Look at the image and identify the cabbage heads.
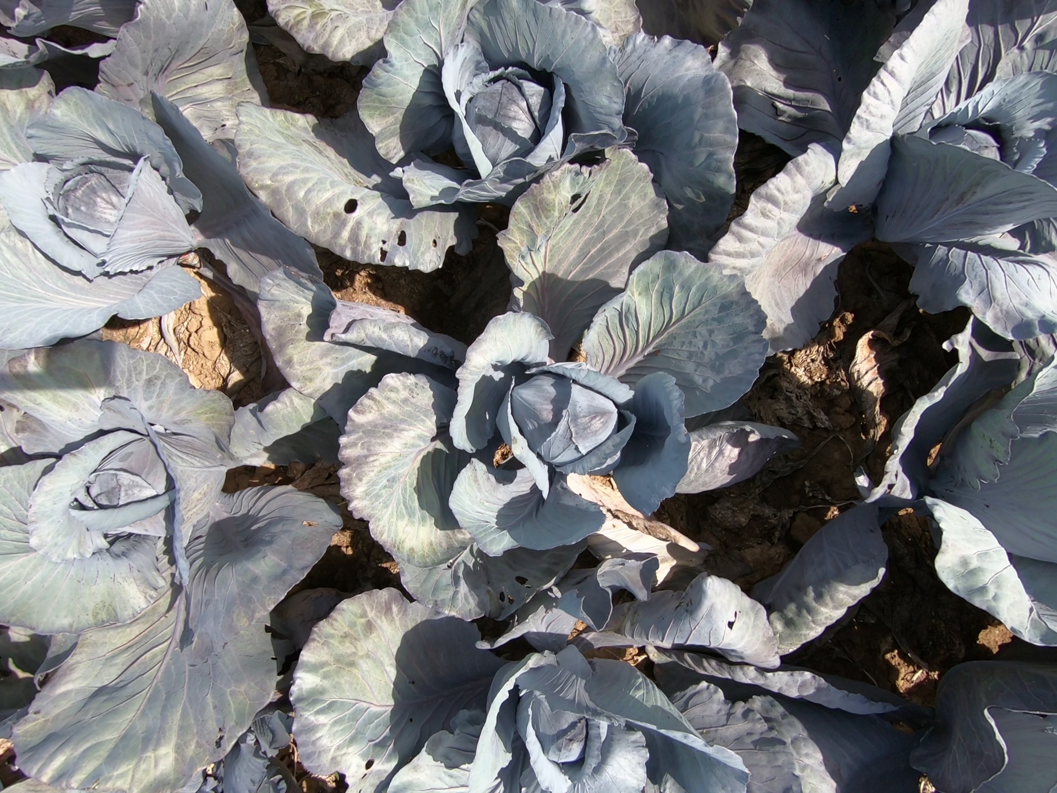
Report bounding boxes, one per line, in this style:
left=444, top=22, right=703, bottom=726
left=455, top=76, right=562, bottom=176
left=55, top=171, right=178, bottom=258
left=84, top=434, right=224, bottom=535
left=516, top=670, right=609, bottom=762
left=911, top=126, right=1006, bottom=222
left=509, top=367, right=619, bottom=470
